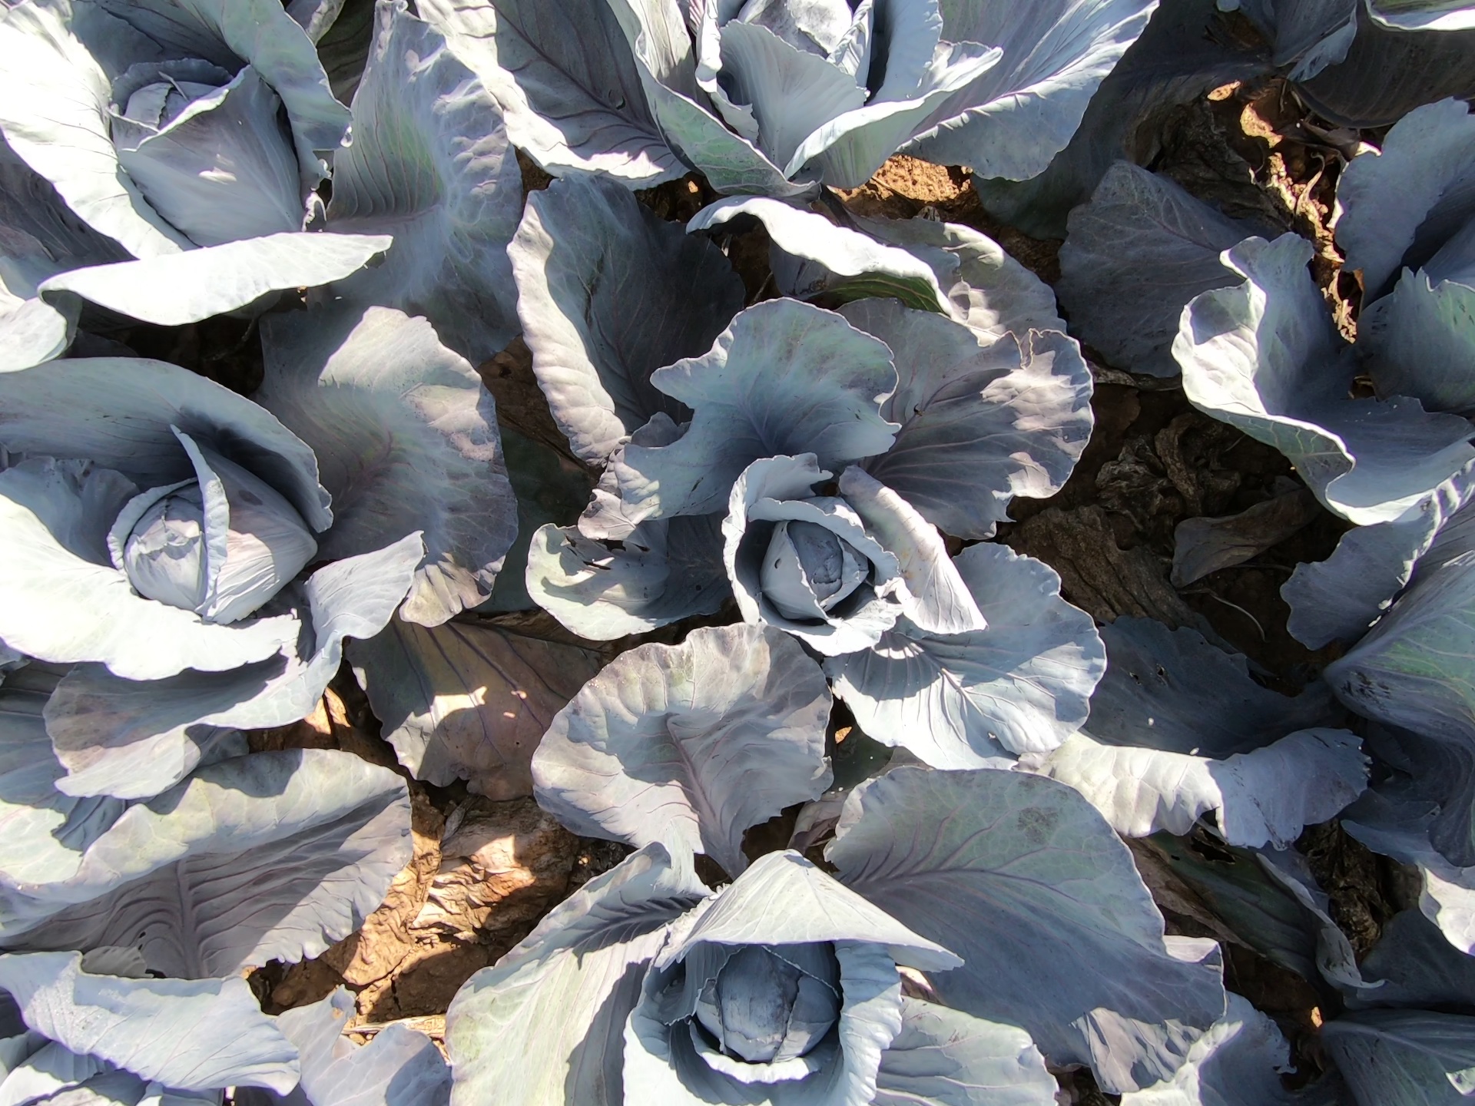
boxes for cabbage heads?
[704,896,840,1063]
[764,508,869,614]
[737,4,863,121]
[35,1038,224,1102]
[127,79,280,214]
[123,478,274,608]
